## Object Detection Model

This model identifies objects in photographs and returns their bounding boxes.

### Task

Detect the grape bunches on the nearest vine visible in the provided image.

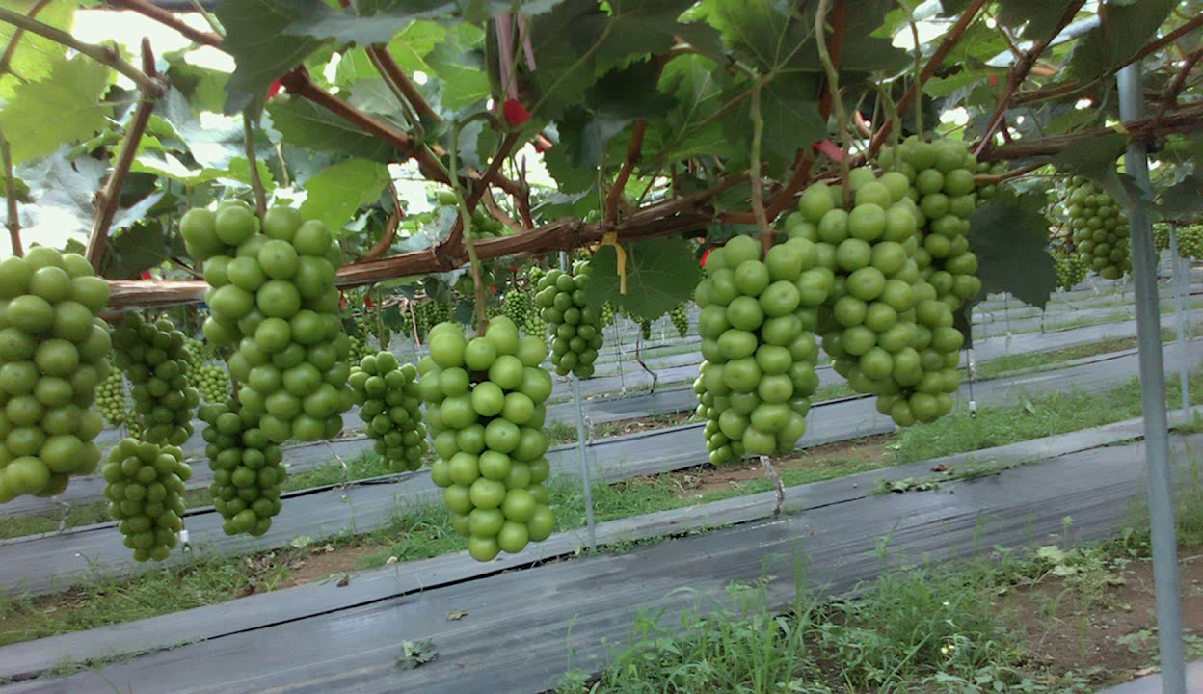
[786,169,923,387]
[0,247,114,505]
[693,236,834,456]
[818,251,965,428]
[878,135,981,315]
[419,315,557,561]
[178,198,357,442]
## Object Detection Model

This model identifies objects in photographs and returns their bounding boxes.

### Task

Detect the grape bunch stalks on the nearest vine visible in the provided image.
[666,45,775,254]
[842,79,902,175]
[815,2,855,214]
[897,0,923,141]
[244,114,267,222]
[449,111,508,335]
[7,190,25,258]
